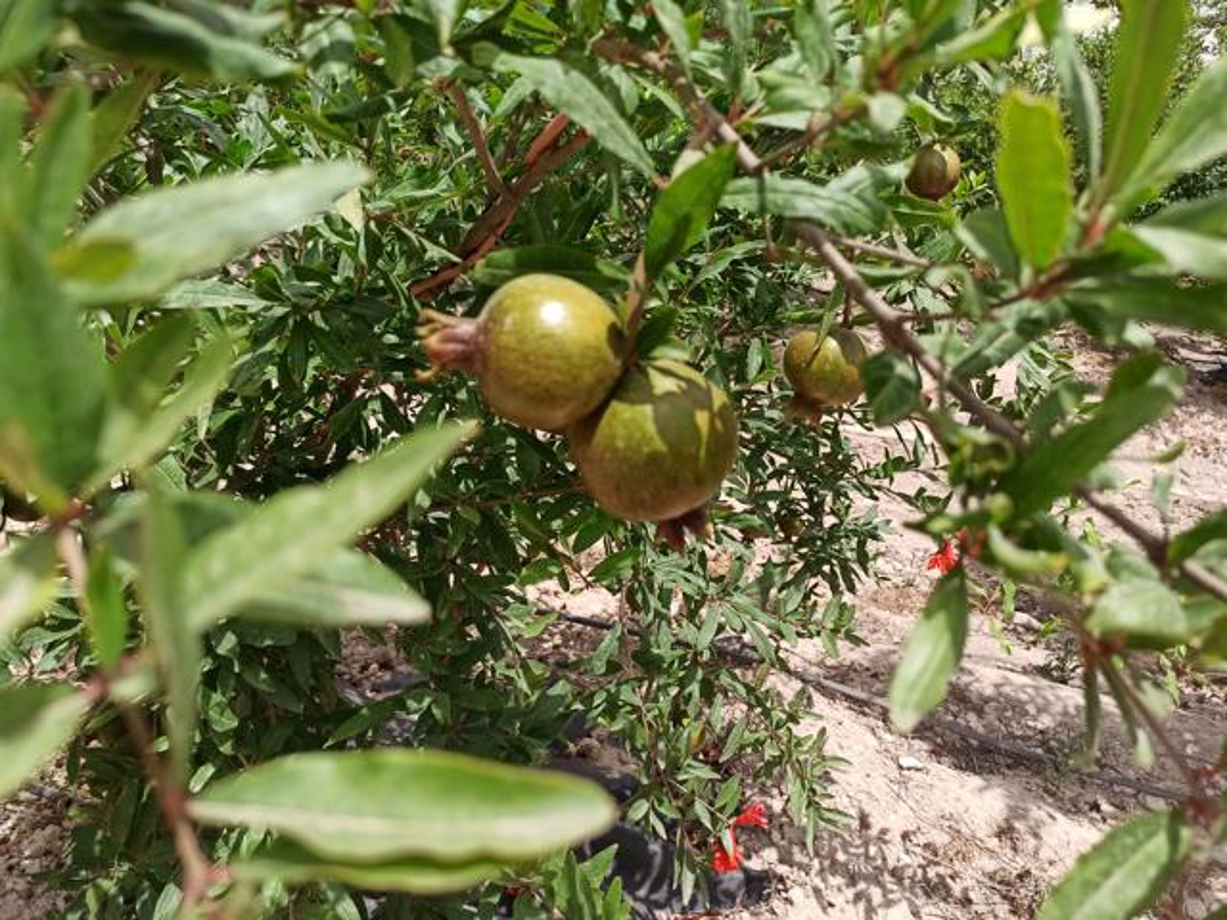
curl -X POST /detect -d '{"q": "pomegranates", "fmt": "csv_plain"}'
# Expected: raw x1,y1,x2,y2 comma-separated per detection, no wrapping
905,142,962,199
414,270,627,431
571,360,738,556
782,326,868,431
